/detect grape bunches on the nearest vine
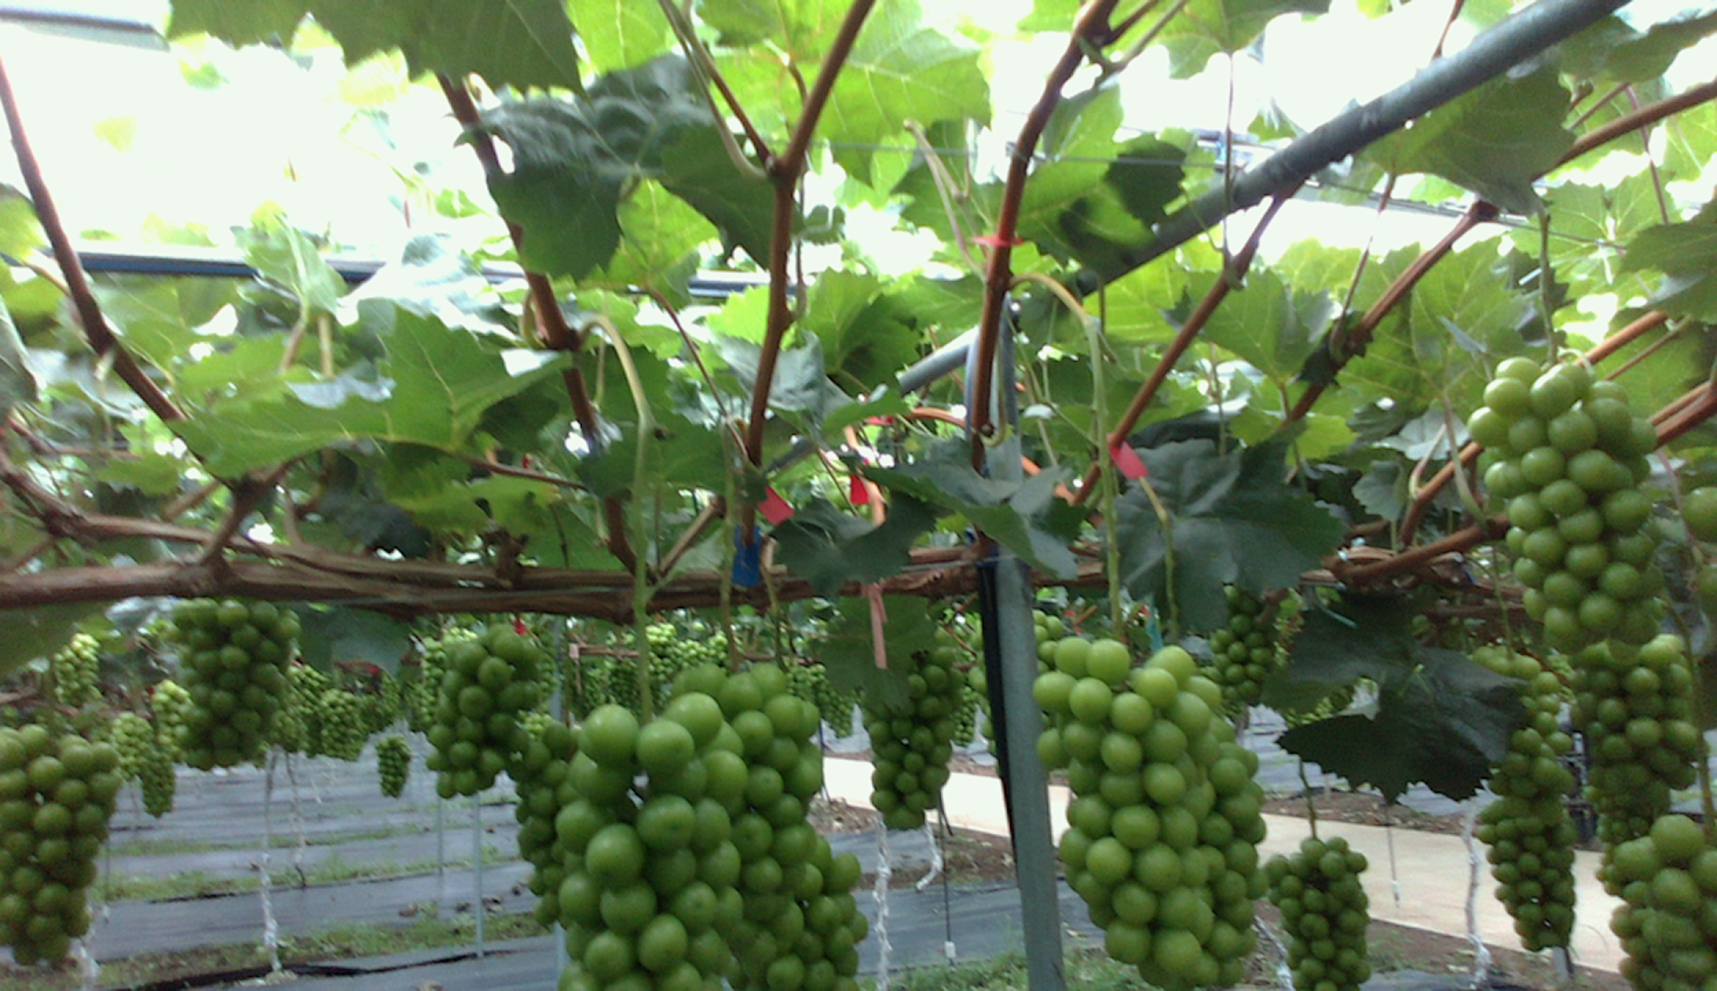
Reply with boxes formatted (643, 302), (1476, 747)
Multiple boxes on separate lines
(1033, 636), (1220, 983)
(557, 692), (744, 990)
(671, 662), (821, 928)
(1469, 358), (1665, 654)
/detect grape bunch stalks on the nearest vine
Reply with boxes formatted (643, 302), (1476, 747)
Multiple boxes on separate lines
(1007, 273), (1125, 641)
(721, 414), (747, 673)
(1533, 191), (1559, 366)
(571, 315), (652, 725)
